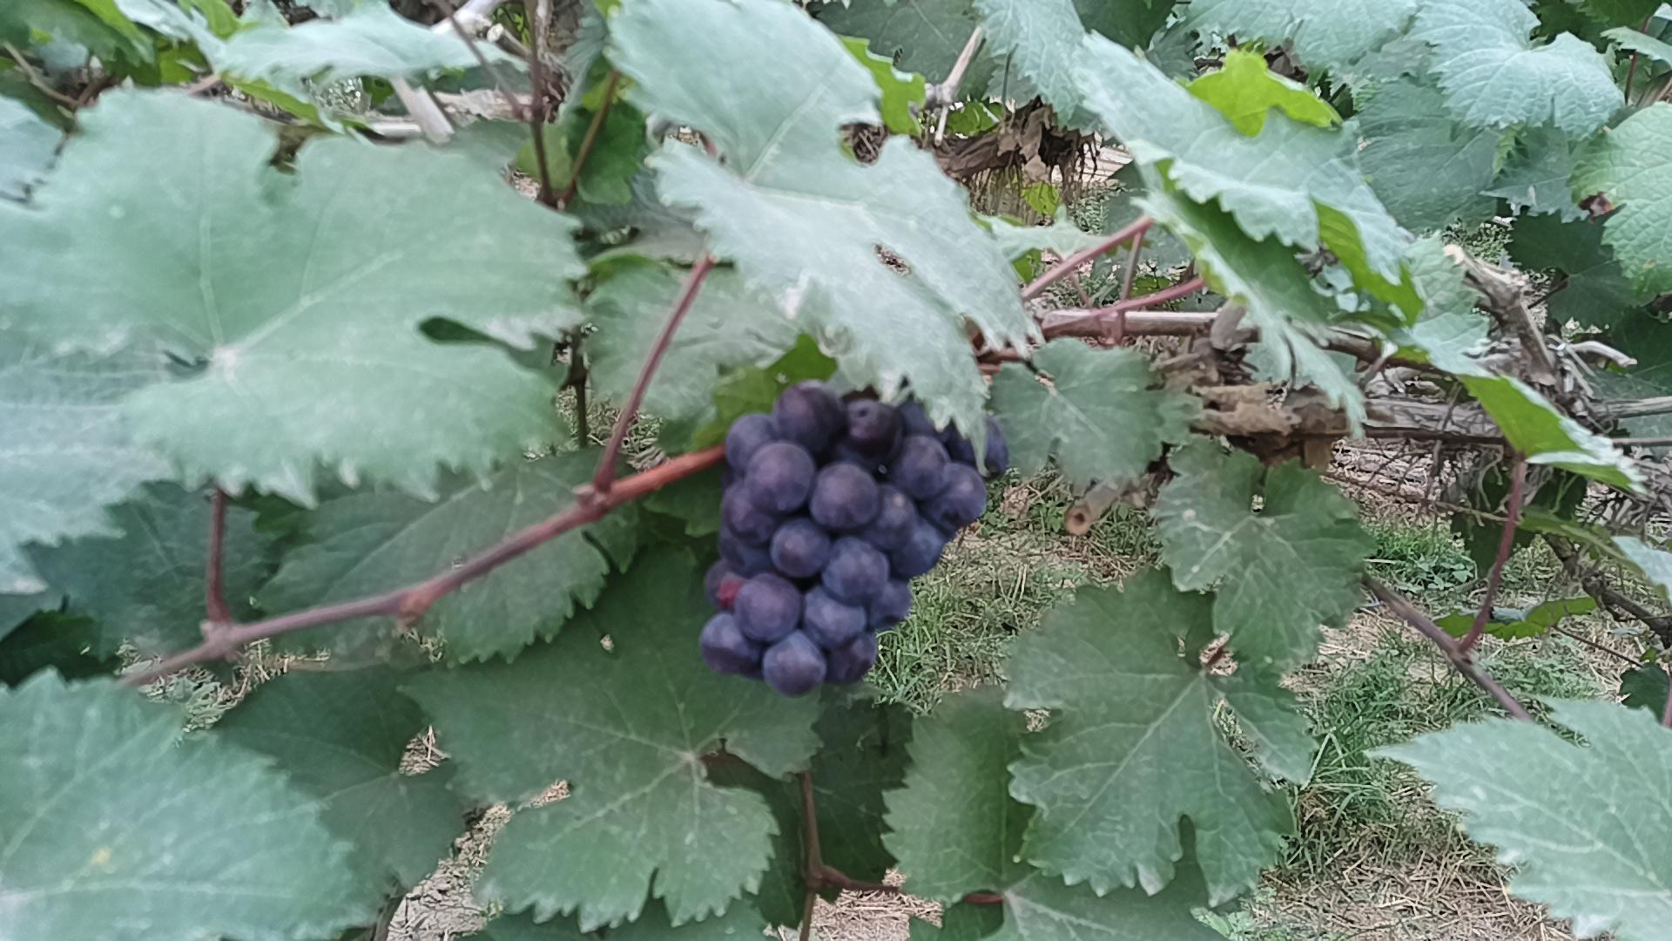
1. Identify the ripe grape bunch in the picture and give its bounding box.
[701,382,1008,695]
